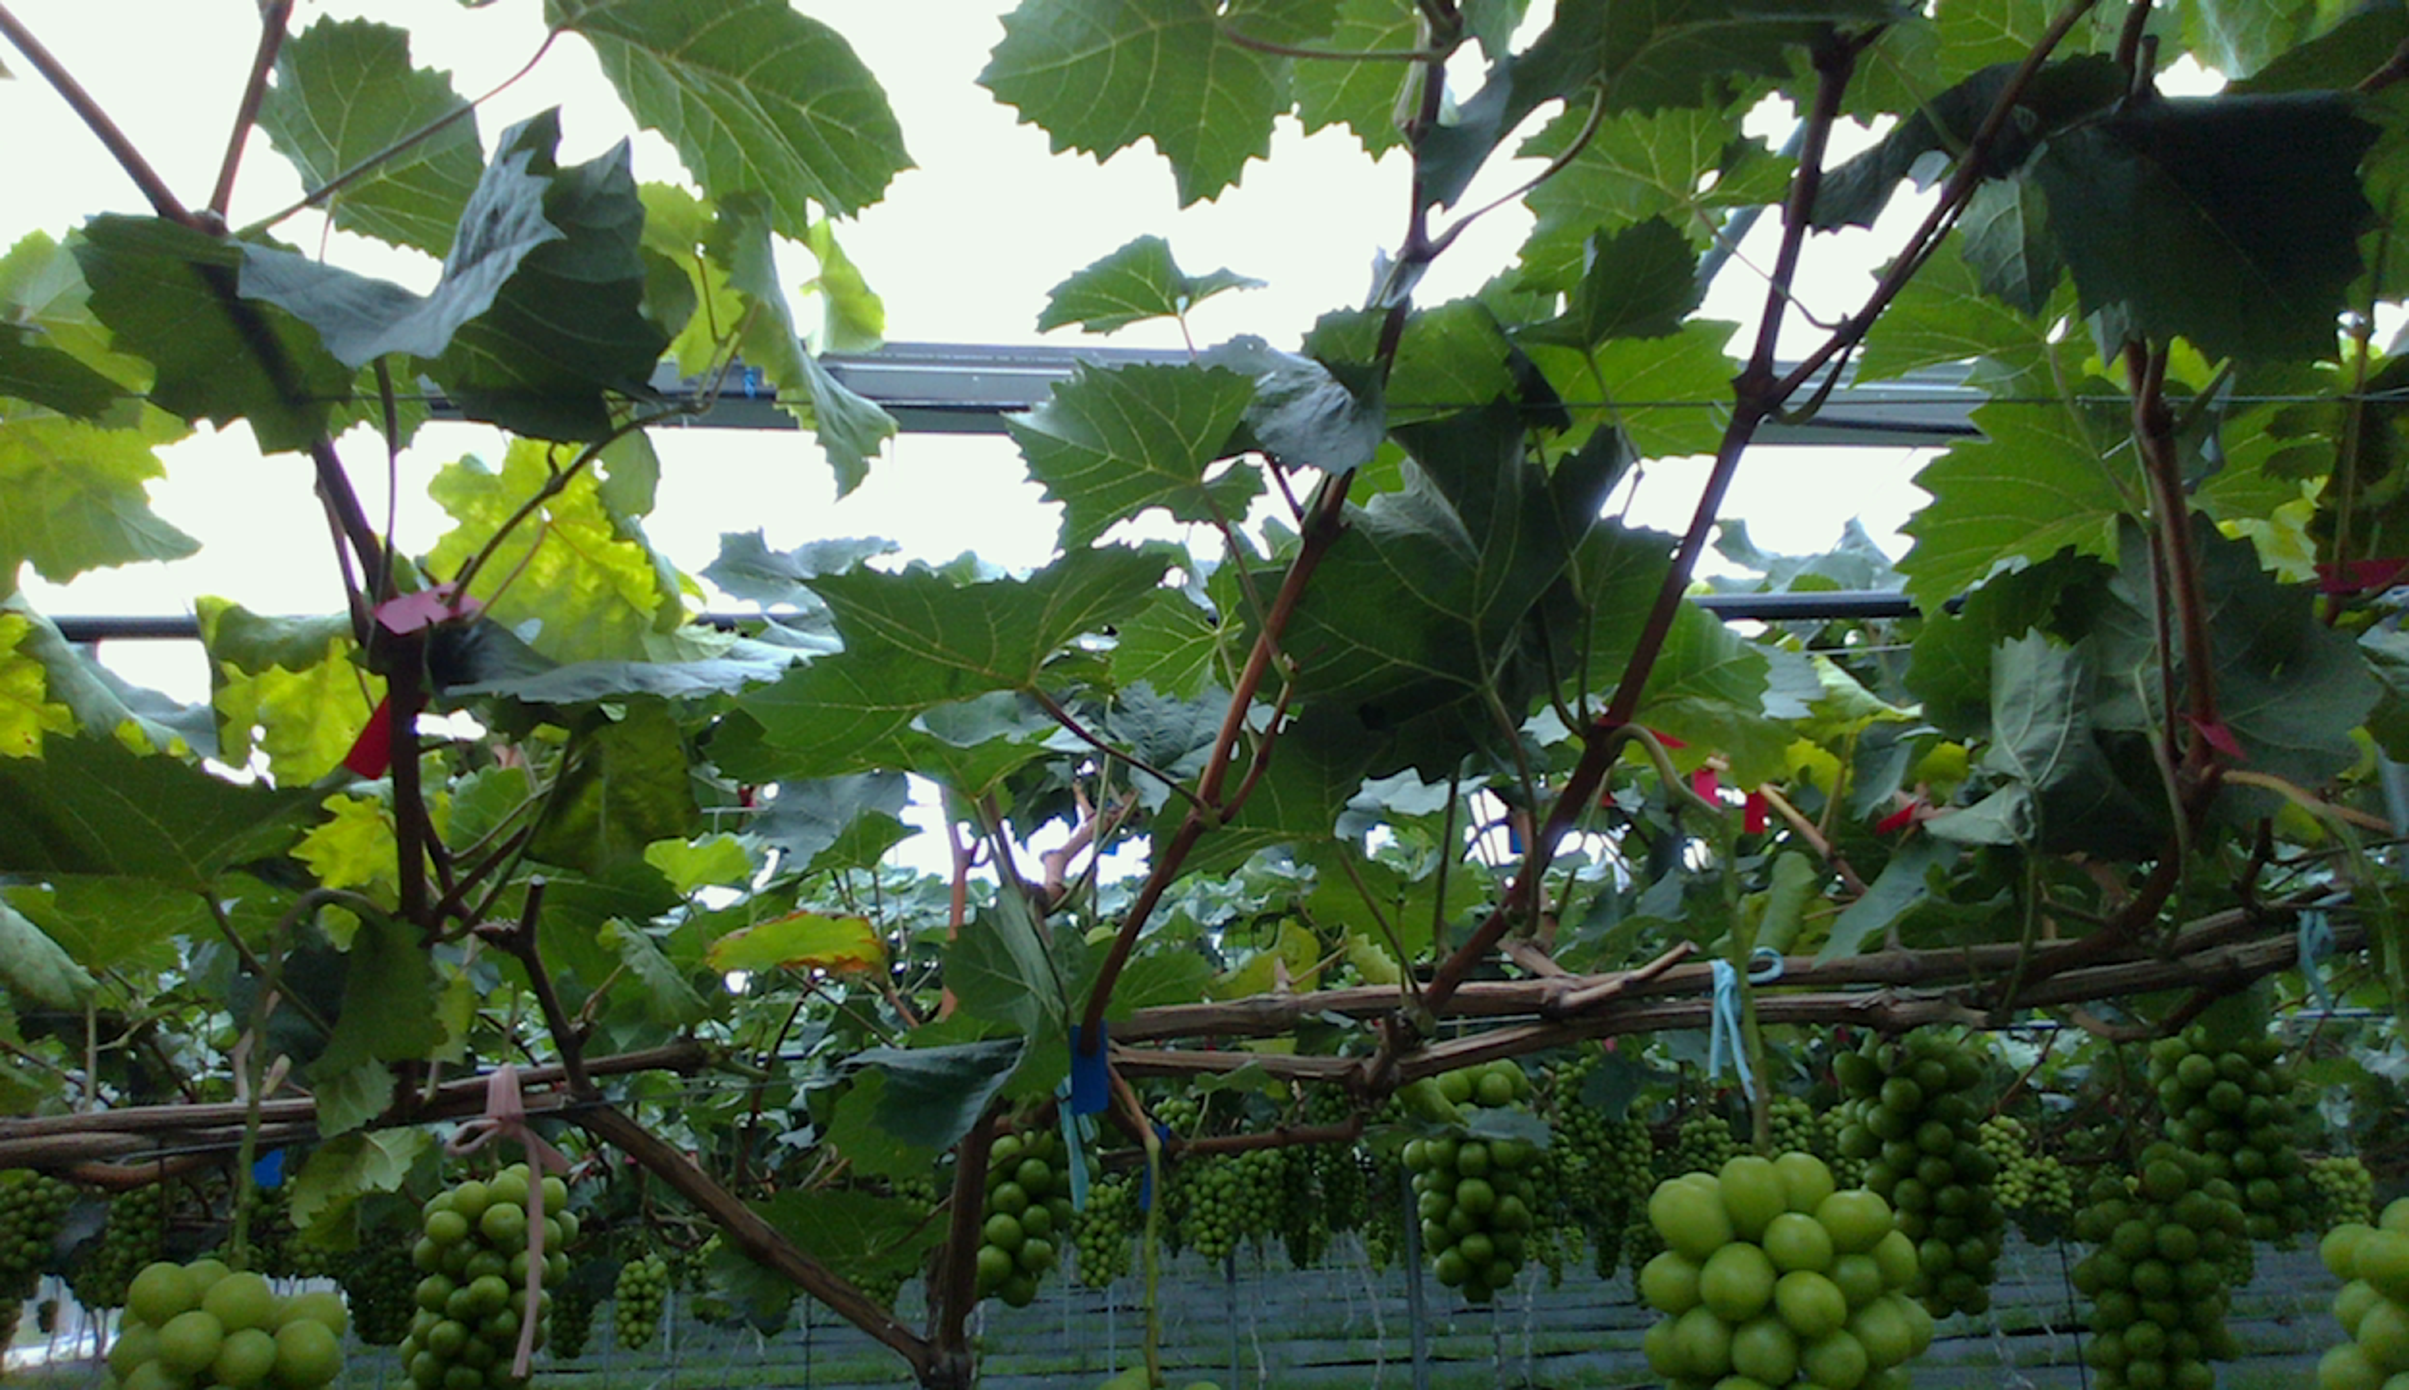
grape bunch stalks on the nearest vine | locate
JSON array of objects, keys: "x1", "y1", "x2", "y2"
[
  {"x1": 1608, "y1": 724, "x2": 1770, "y2": 1156},
  {"x1": 228, "y1": 886, "x2": 390, "y2": 1268},
  {"x1": 1106, "y1": 1064, "x2": 1164, "y2": 1388}
]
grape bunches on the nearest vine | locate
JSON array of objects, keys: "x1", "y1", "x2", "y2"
[
  {"x1": 2312, "y1": 1197, "x2": 2407, "y2": 1388},
  {"x1": 93, "y1": 1261, "x2": 347, "y2": 1388},
  {"x1": 1639, "y1": 1153, "x2": 1932, "y2": 1388},
  {"x1": 1094, "y1": 1369, "x2": 1218, "y2": 1388}
]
